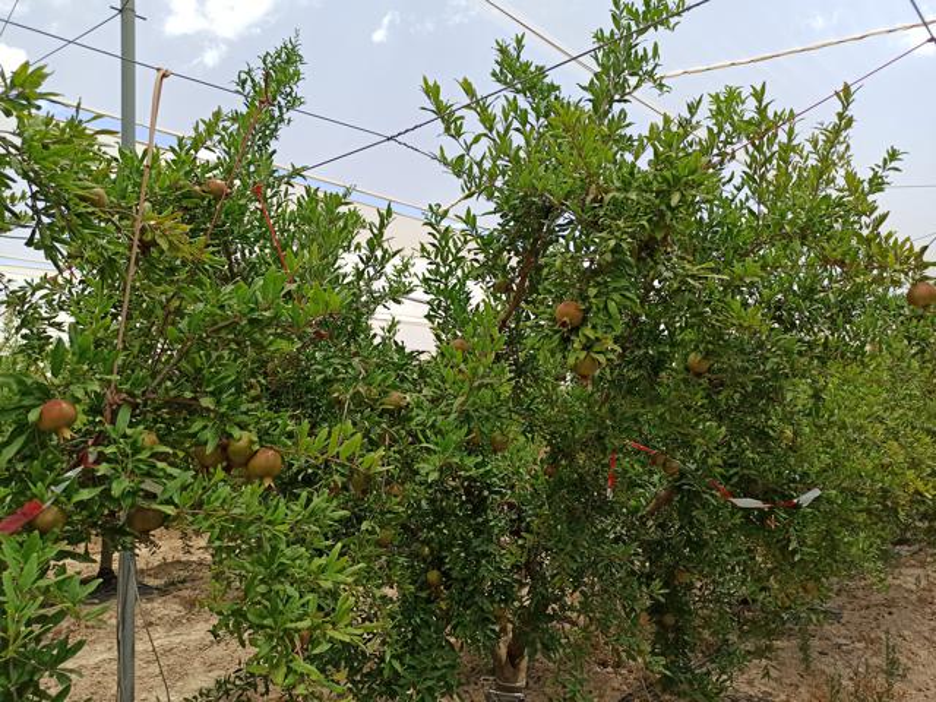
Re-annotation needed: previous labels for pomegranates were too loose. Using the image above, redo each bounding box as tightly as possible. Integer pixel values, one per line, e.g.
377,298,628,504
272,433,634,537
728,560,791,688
654,453,667,467
205,178,233,200
29,506,64,534
386,392,408,411
663,459,682,475
246,446,284,491
554,300,584,329
573,354,600,382
452,336,471,351
35,398,80,448
490,433,509,452
907,281,936,313
143,431,158,445
222,431,256,475
127,509,165,541
193,445,218,474
426,569,443,586
91,189,108,208
686,351,709,376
